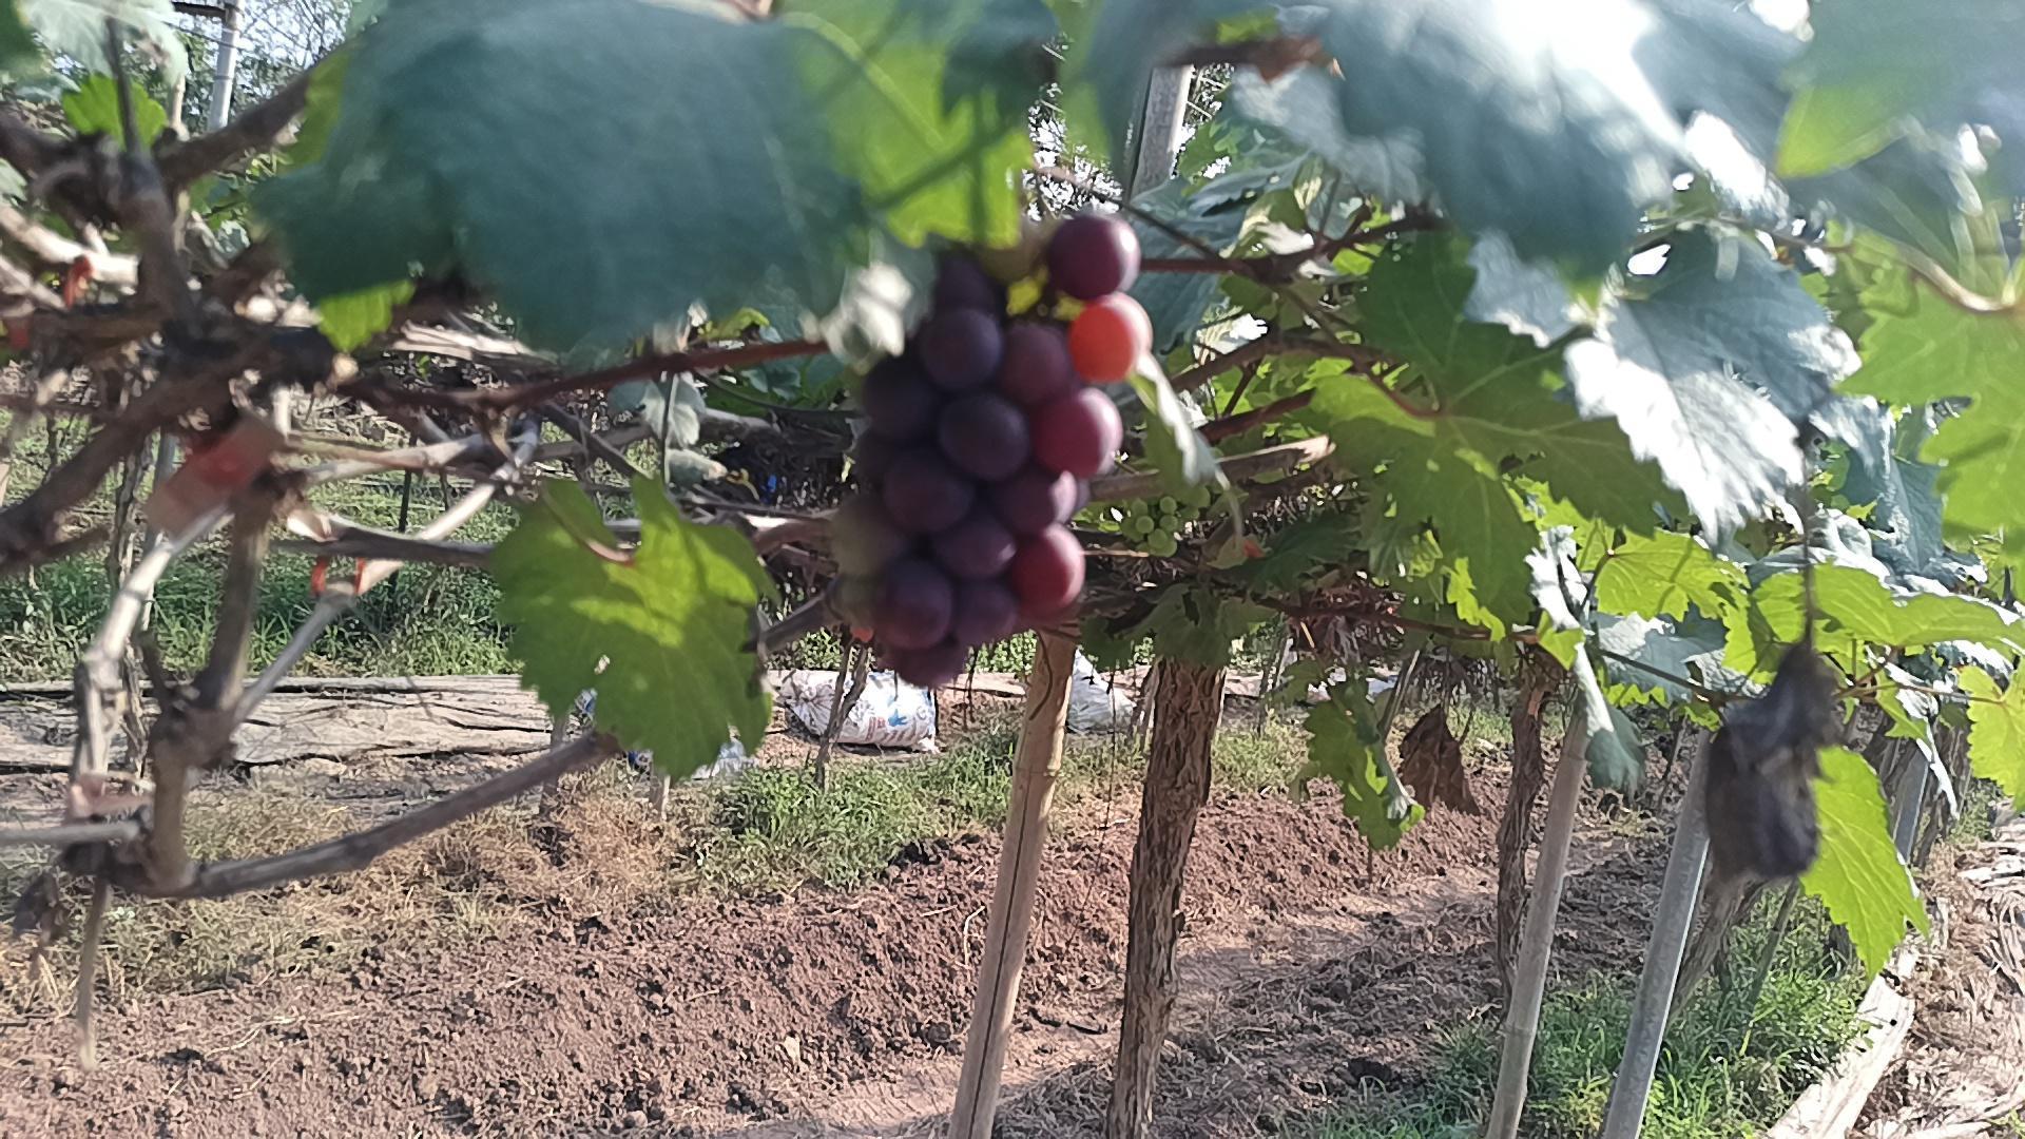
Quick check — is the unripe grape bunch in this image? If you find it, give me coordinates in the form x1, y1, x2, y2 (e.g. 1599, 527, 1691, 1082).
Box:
1116, 488, 1213, 557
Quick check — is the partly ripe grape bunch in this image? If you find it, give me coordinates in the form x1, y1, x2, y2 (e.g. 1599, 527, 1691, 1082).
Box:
829, 213, 1151, 683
